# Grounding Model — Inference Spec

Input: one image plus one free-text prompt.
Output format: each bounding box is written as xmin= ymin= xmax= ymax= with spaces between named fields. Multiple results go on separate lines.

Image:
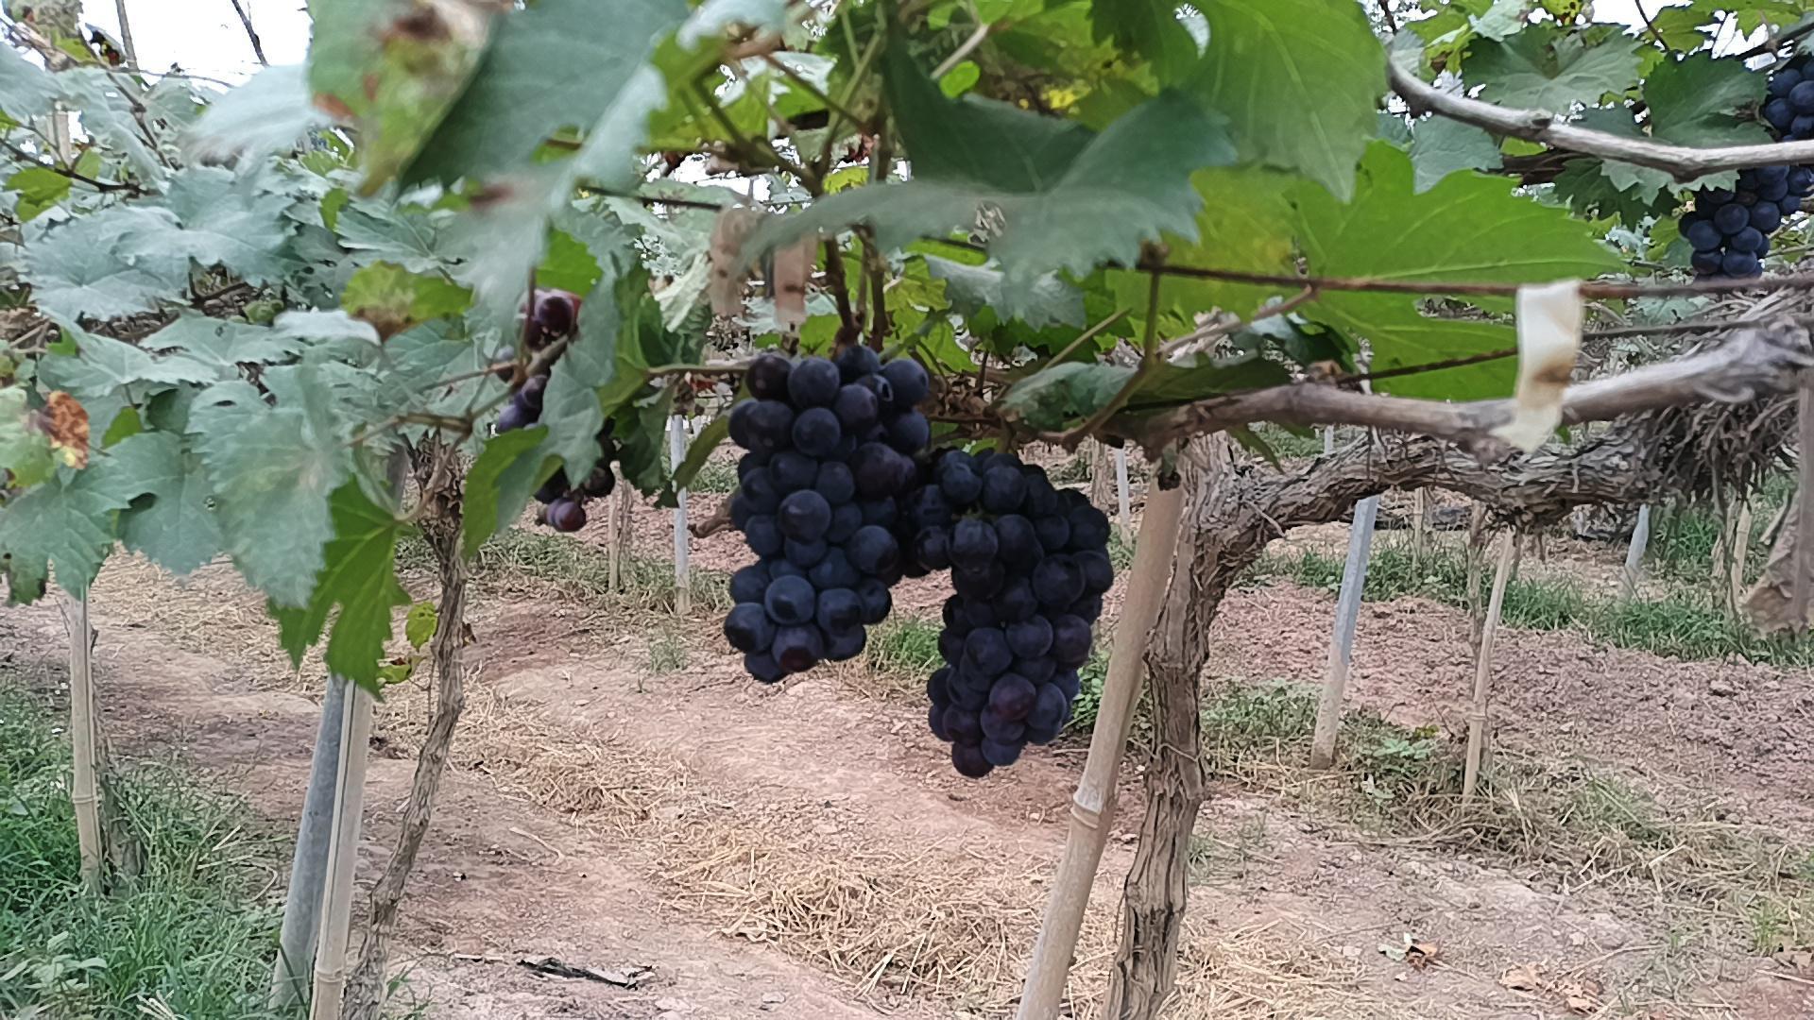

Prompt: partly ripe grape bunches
xmin=491 ymin=288 xmax=583 ymax=434
xmin=531 ymin=416 xmax=620 ymax=535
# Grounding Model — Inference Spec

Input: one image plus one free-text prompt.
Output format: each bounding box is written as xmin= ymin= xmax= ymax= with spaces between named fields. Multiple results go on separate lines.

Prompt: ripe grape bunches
xmin=927 ymin=450 xmax=1113 ymax=777
xmin=898 ymin=450 xmax=982 ymax=577
xmin=1675 ymin=51 xmax=1813 ymax=282
xmin=725 ymin=344 xmax=929 ymax=682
